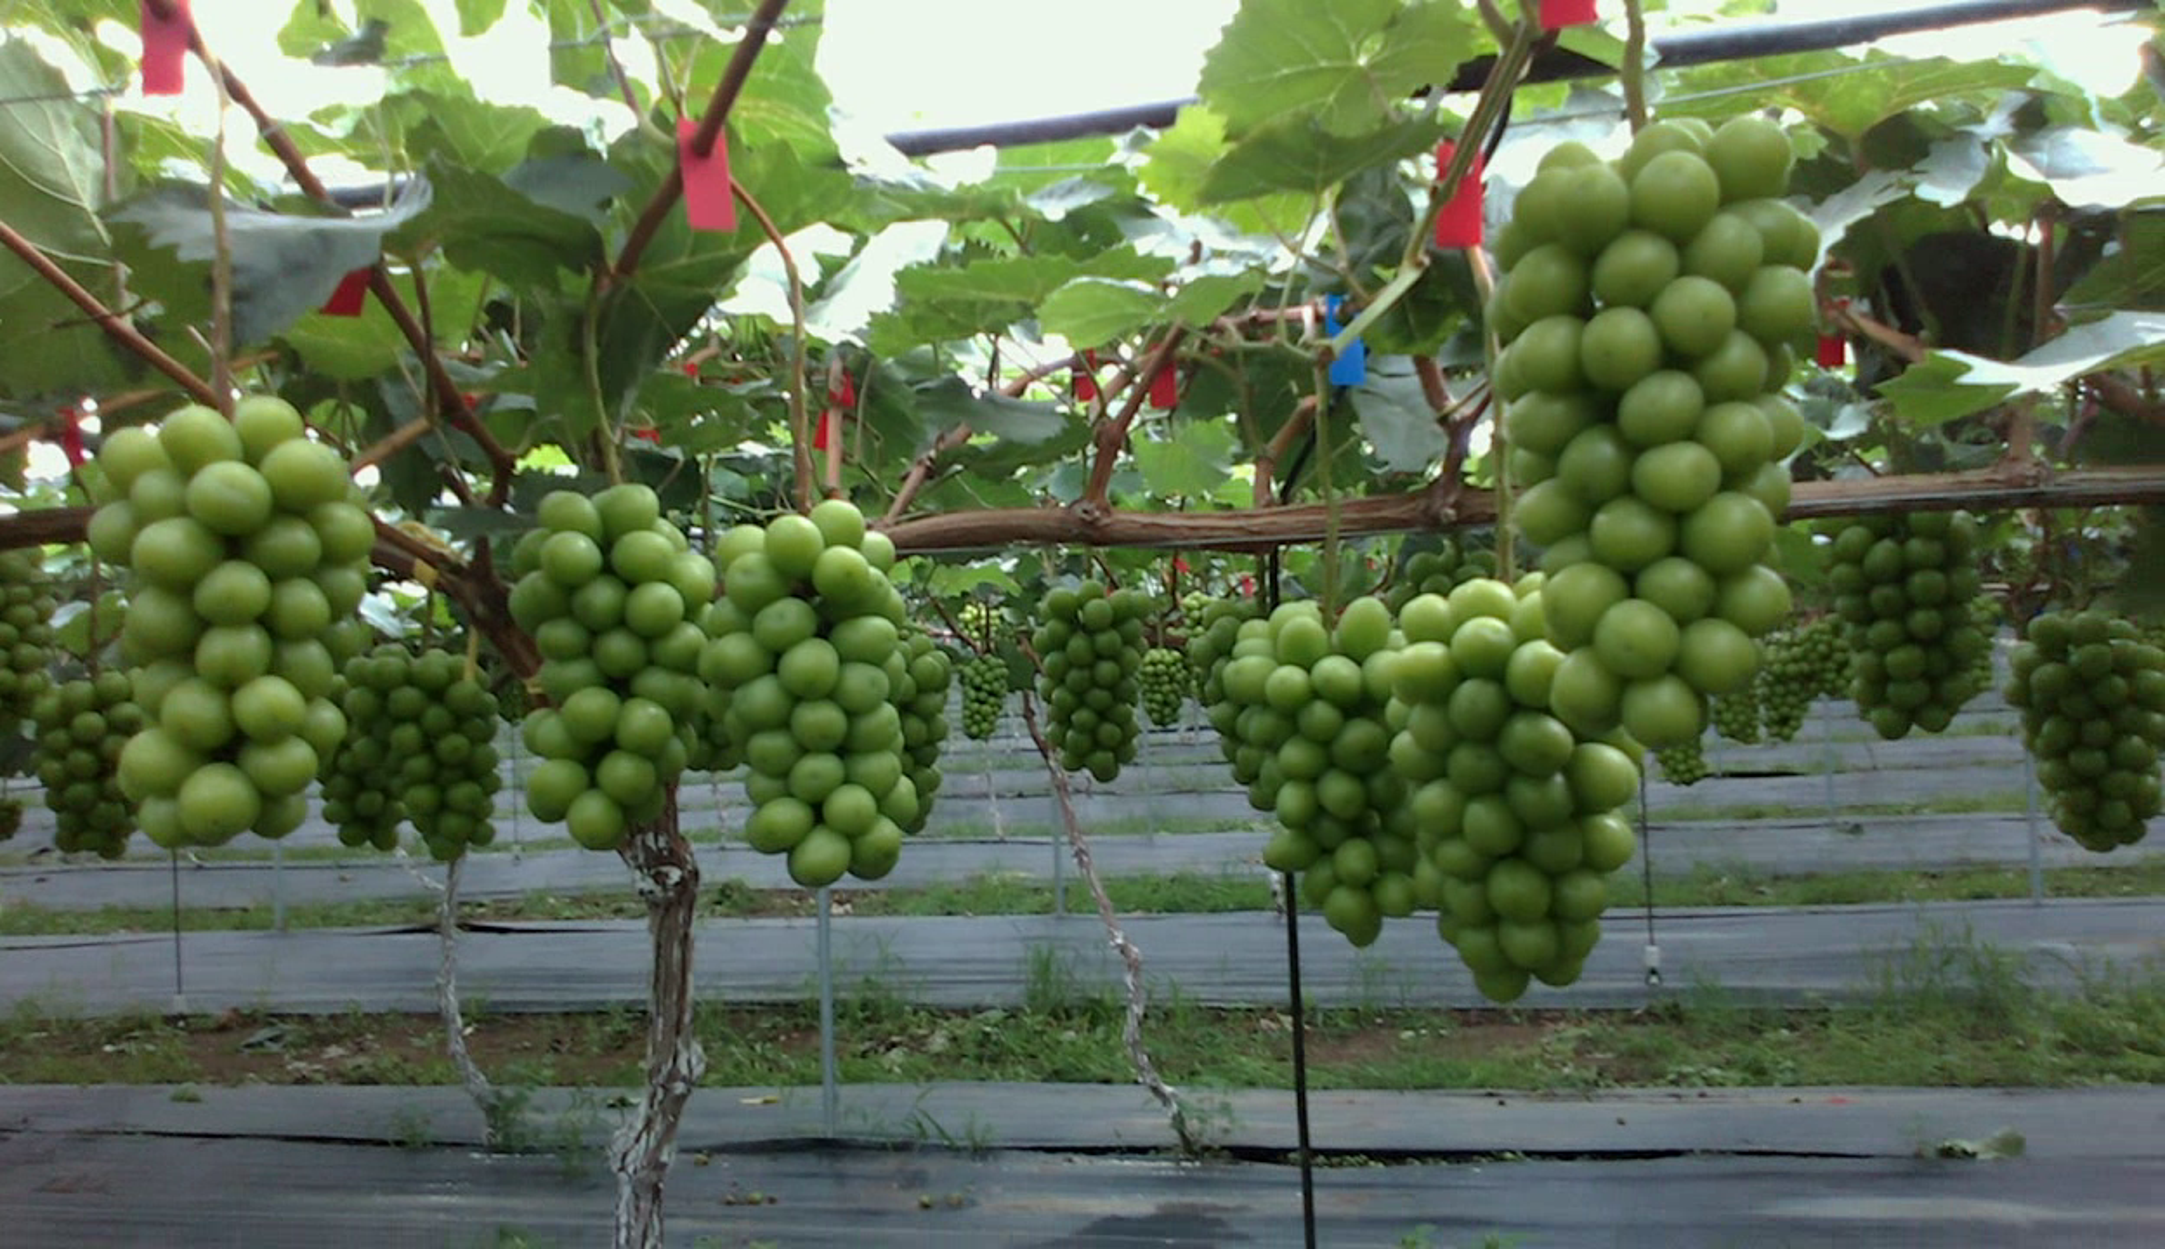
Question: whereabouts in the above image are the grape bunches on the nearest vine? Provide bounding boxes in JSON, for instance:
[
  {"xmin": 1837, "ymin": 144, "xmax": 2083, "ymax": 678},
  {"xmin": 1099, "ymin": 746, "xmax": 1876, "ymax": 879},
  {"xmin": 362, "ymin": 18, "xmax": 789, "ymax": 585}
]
[
  {"xmin": 697, "ymin": 494, "xmax": 918, "ymax": 888},
  {"xmin": 1488, "ymin": 116, "xmax": 1815, "ymax": 748},
  {"xmin": 510, "ymin": 484, "xmax": 716, "ymax": 853},
  {"xmin": 82, "ymin": 394, "xmax": 376, "ymax": 848},
  {"xmin": 1393, "ymin": 571, "xmax": 1643, "ymax": 1008},
  {"xmin": 1223, "ymin": 597, "xmax": 1421, "ymax": 947}
]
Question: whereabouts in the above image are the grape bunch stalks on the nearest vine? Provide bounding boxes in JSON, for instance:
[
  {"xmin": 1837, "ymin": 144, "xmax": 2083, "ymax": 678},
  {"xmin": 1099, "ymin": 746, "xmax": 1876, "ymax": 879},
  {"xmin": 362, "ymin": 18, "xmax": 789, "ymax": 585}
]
[
  {"xmin": 205, "ymin": 59, "xmax": 232, "ymax": 409},
  {"xmin": 729, "ymin": 177, "xmax": 812, "ymax": 507},
  {"xmin": 1468, "ymin": 252, "xmax": 1514, "ymax": 583},
  {"xmin": 578, "ymin": 272, "xmax": 621, "ymax": 482},
  {"xmin": 1313, "ymin": 371, "xmax": 1341, "ymax": 631},
  {"xmin": 1622, "ymin": 2, "xmax": 1646, "ymax": 130}
]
